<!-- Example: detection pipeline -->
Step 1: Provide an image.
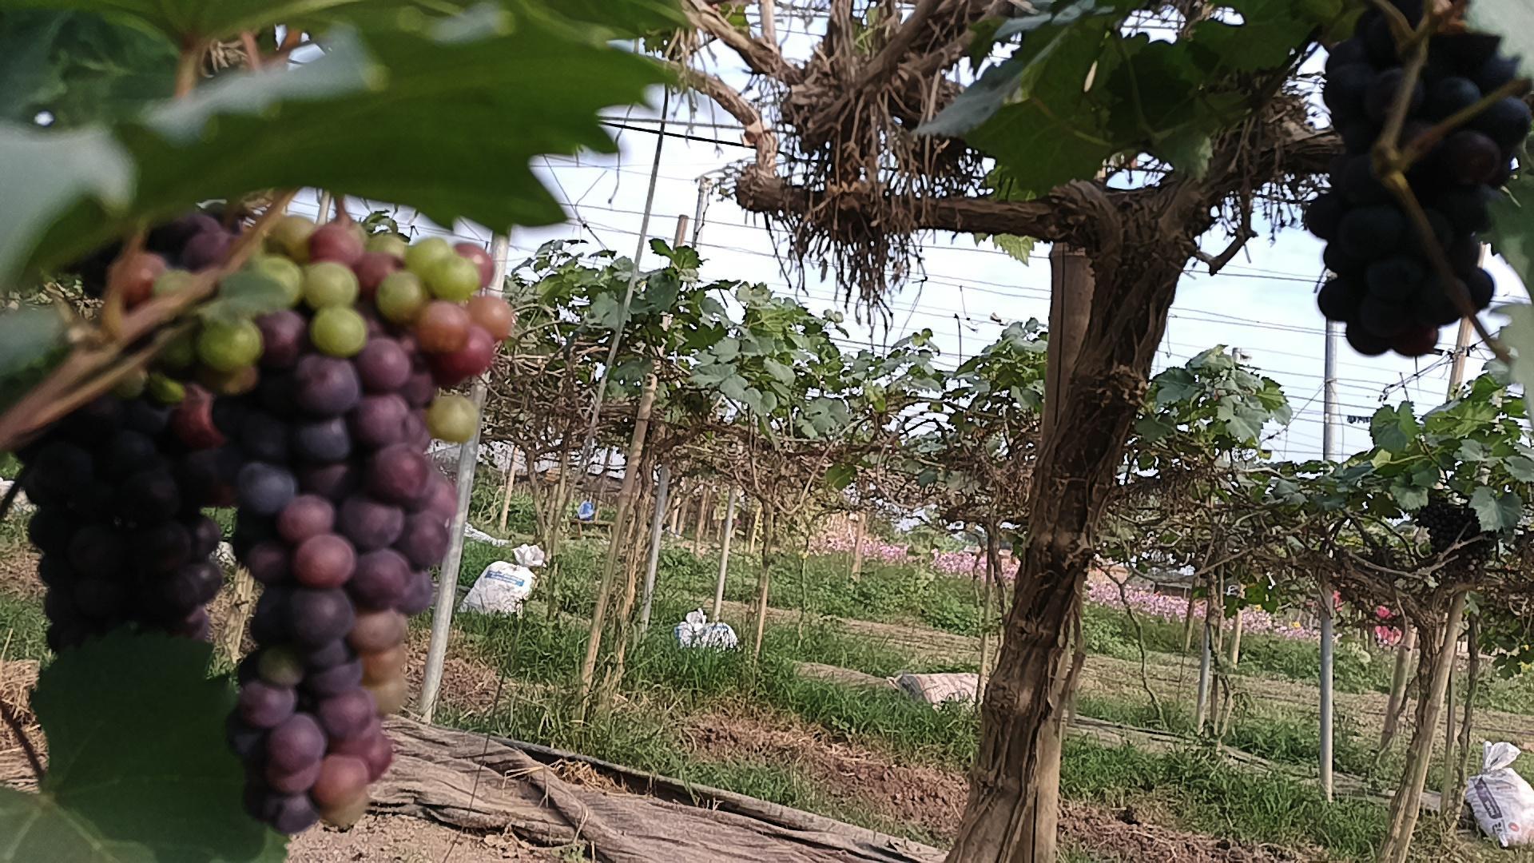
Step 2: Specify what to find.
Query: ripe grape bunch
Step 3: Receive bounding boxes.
[1303,0,1533,356]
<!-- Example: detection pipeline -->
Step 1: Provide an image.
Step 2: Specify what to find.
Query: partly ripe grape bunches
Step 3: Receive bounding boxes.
[10,389,236,650]
[82,202,514,837]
